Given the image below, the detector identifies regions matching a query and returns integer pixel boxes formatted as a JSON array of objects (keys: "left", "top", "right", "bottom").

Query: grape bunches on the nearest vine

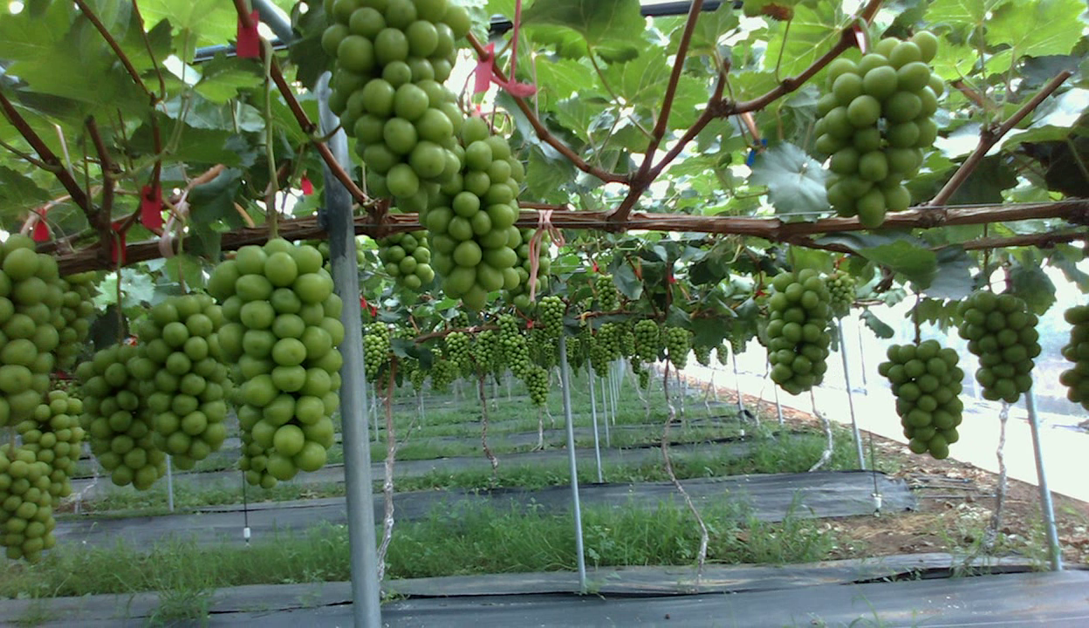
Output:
[
  {"left": 320, "top": 0, "right": 471, "bottom": 215},
  {"left": 812, "top": 30, "right": 946, "bottom": 228},
  {"left": 419, "top": 117, "right": 525, "bottom": 313},
  {"left": 209, "top": 240, "right": 344, "bottom": 479},
  {"left": 1, "top": 234, "right": 63, "bottom": 427},
  {"left": 77, "top": 346, "right": 168, "bottom": 491},
  {"left": 134, "top": 295, "right": 231, "bottom": 470}
]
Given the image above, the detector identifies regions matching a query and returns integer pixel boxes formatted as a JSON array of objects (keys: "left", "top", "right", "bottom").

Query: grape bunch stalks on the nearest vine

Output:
[
  {"left": 852, "top": 18, "right": 873, "bottom": 52},
  {"left": 260, "top": 35, "right": 279, "bottom": 239},
  {"left": 19, "top": 195, "right": 70, "bottom": 234},
  {"left": 113, "top": 229, "right": 123, "bottom": 345},
  {"left": 162, "top": 195, "right": 186, "bottom": 294}
]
